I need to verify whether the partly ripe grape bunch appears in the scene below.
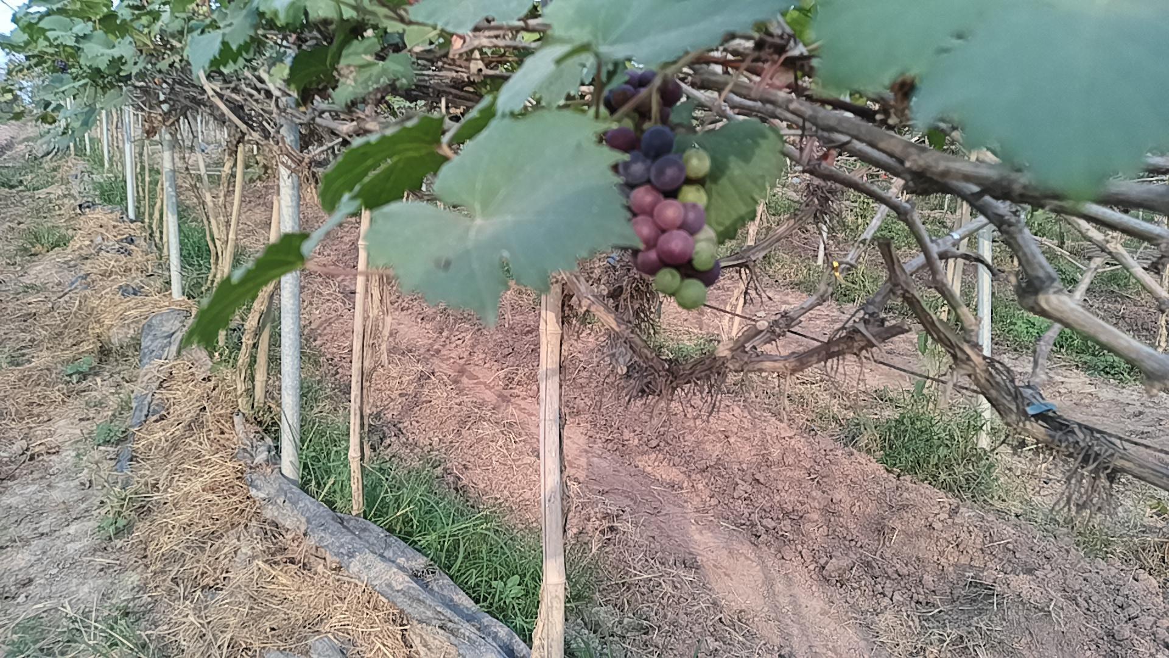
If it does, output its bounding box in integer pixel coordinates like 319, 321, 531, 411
603, 69, 720, 308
